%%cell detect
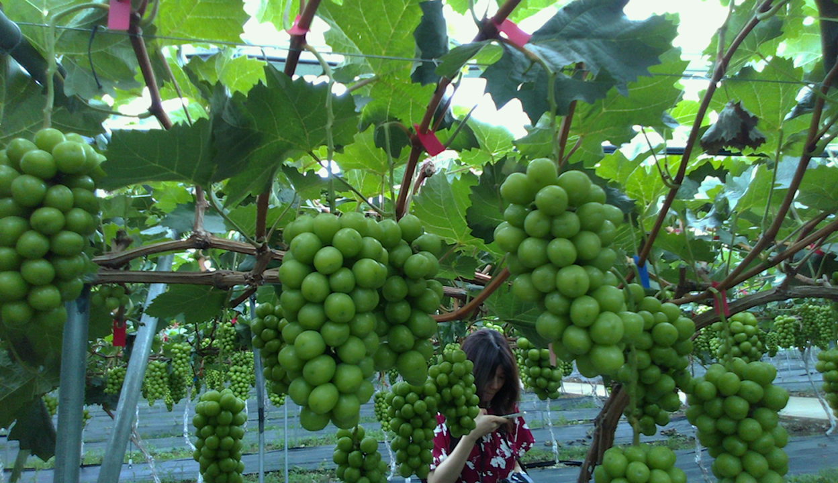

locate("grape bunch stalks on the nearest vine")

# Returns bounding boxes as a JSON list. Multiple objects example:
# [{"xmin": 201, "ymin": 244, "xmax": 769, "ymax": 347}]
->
[
  {"xmin": 710, "ymin": 288, "xmax": 735, "ymax": 372},
  {"xmin": 304, "ymin": 44, "xmax": 335, "ymax": 213},
  {"xmin": 498, "ymin": 34, "xmax": 562, "ymax": 176},
  {"xmin": 383, "ymin": 121, "xmax": 416, "ymax": 223},
  {"xmin": 616, "ymin": 268, "xmax": 636, "ymax": 312},
  {"xmin": 44, "ymin": 3, "xmax": 112, "ymax": 127}
]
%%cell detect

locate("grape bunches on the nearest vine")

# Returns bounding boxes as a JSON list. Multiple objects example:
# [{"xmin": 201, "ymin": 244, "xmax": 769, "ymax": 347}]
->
[
  {"xmin": 494, "ymin": 157, "xmax": 645, "ymax": 384},
  {"xmin": 0, "ymin": 129, "xmax": 105, "ymax": 330},
  {"xmin": 624, "ymin": 284, "xmax": 696, "ymax": 435},
  {"xmin": 279, "ymin": 212, "xmax": 389, "ymax": 431},
  {"xmin": 594, "ymin": 443, "xmax": 687, "ymax": 482},
  {"xmin": 373, "ymin": 215, "xmax": 445, "ymax": 388},
  {"xmin": 684, "ymin": 357, "xmax": 790, "ymax": 482}
]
